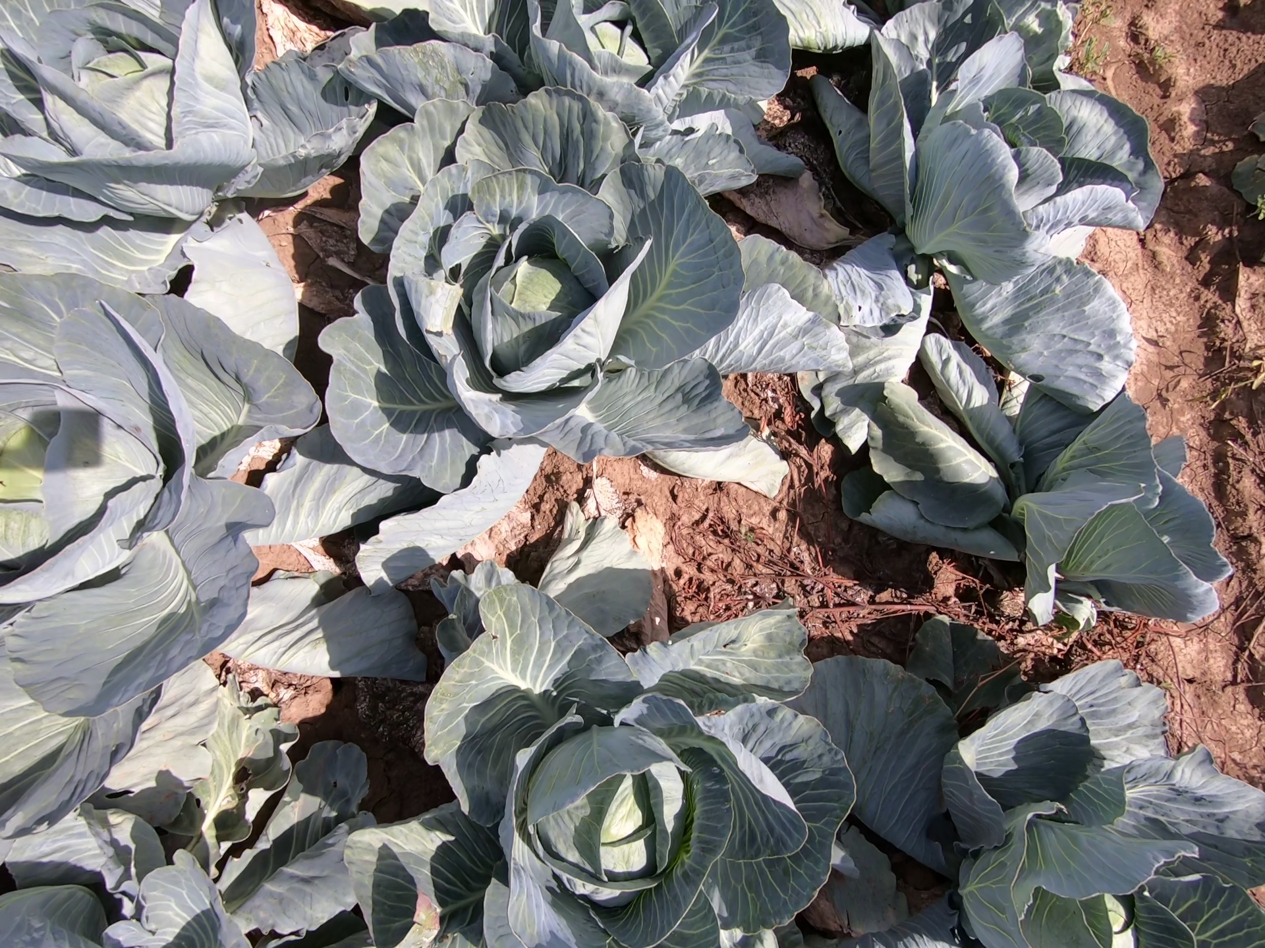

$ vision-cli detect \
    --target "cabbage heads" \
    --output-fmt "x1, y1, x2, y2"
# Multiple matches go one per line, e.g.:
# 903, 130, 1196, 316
73, 50, 217, 194
472, 257, 604, 379
1, 396, 161, 569
1003, 828, 1148, 947
554, 13, 647, 99
532, 727, 687, 891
